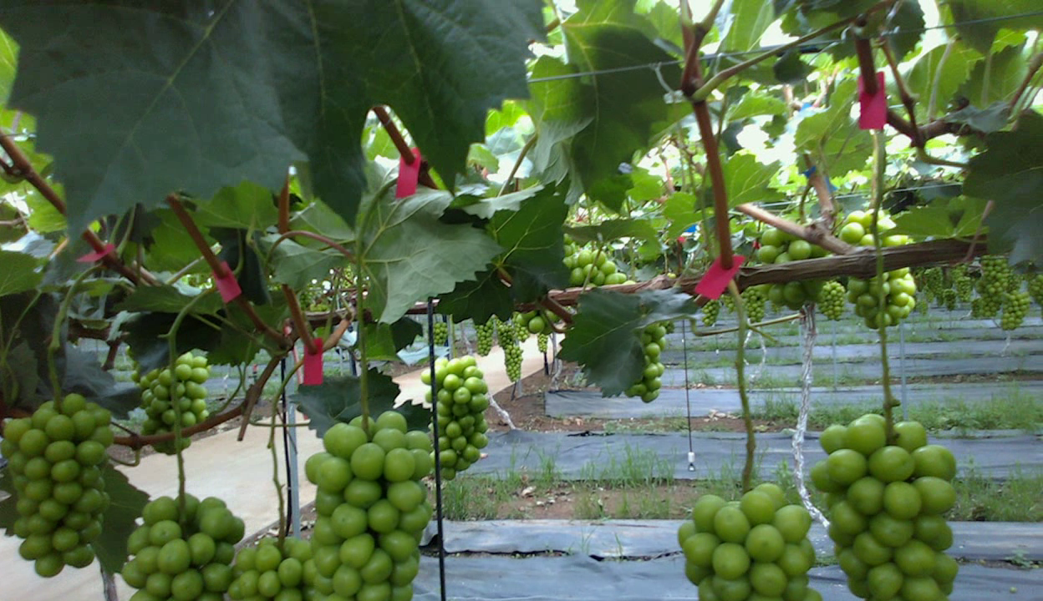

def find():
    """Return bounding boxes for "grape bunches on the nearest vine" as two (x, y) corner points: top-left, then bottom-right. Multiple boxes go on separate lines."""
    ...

(121, 492), (245, 600)
(304, 411), (432, 600)
(677, 482), (822, 600)
(0, 393), (114, 577)
(228, 538), (318, 600)
(807, 414), (959, 600)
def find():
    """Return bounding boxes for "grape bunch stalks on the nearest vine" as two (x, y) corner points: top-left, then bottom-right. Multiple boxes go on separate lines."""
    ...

(167, 285), (217, 541)
(267, 357), (304, 550)
(728, 279), (756, 495)
(48, 261), (106, 414)
(355, 177), (396, 442)
(870, 129), (898, 446)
